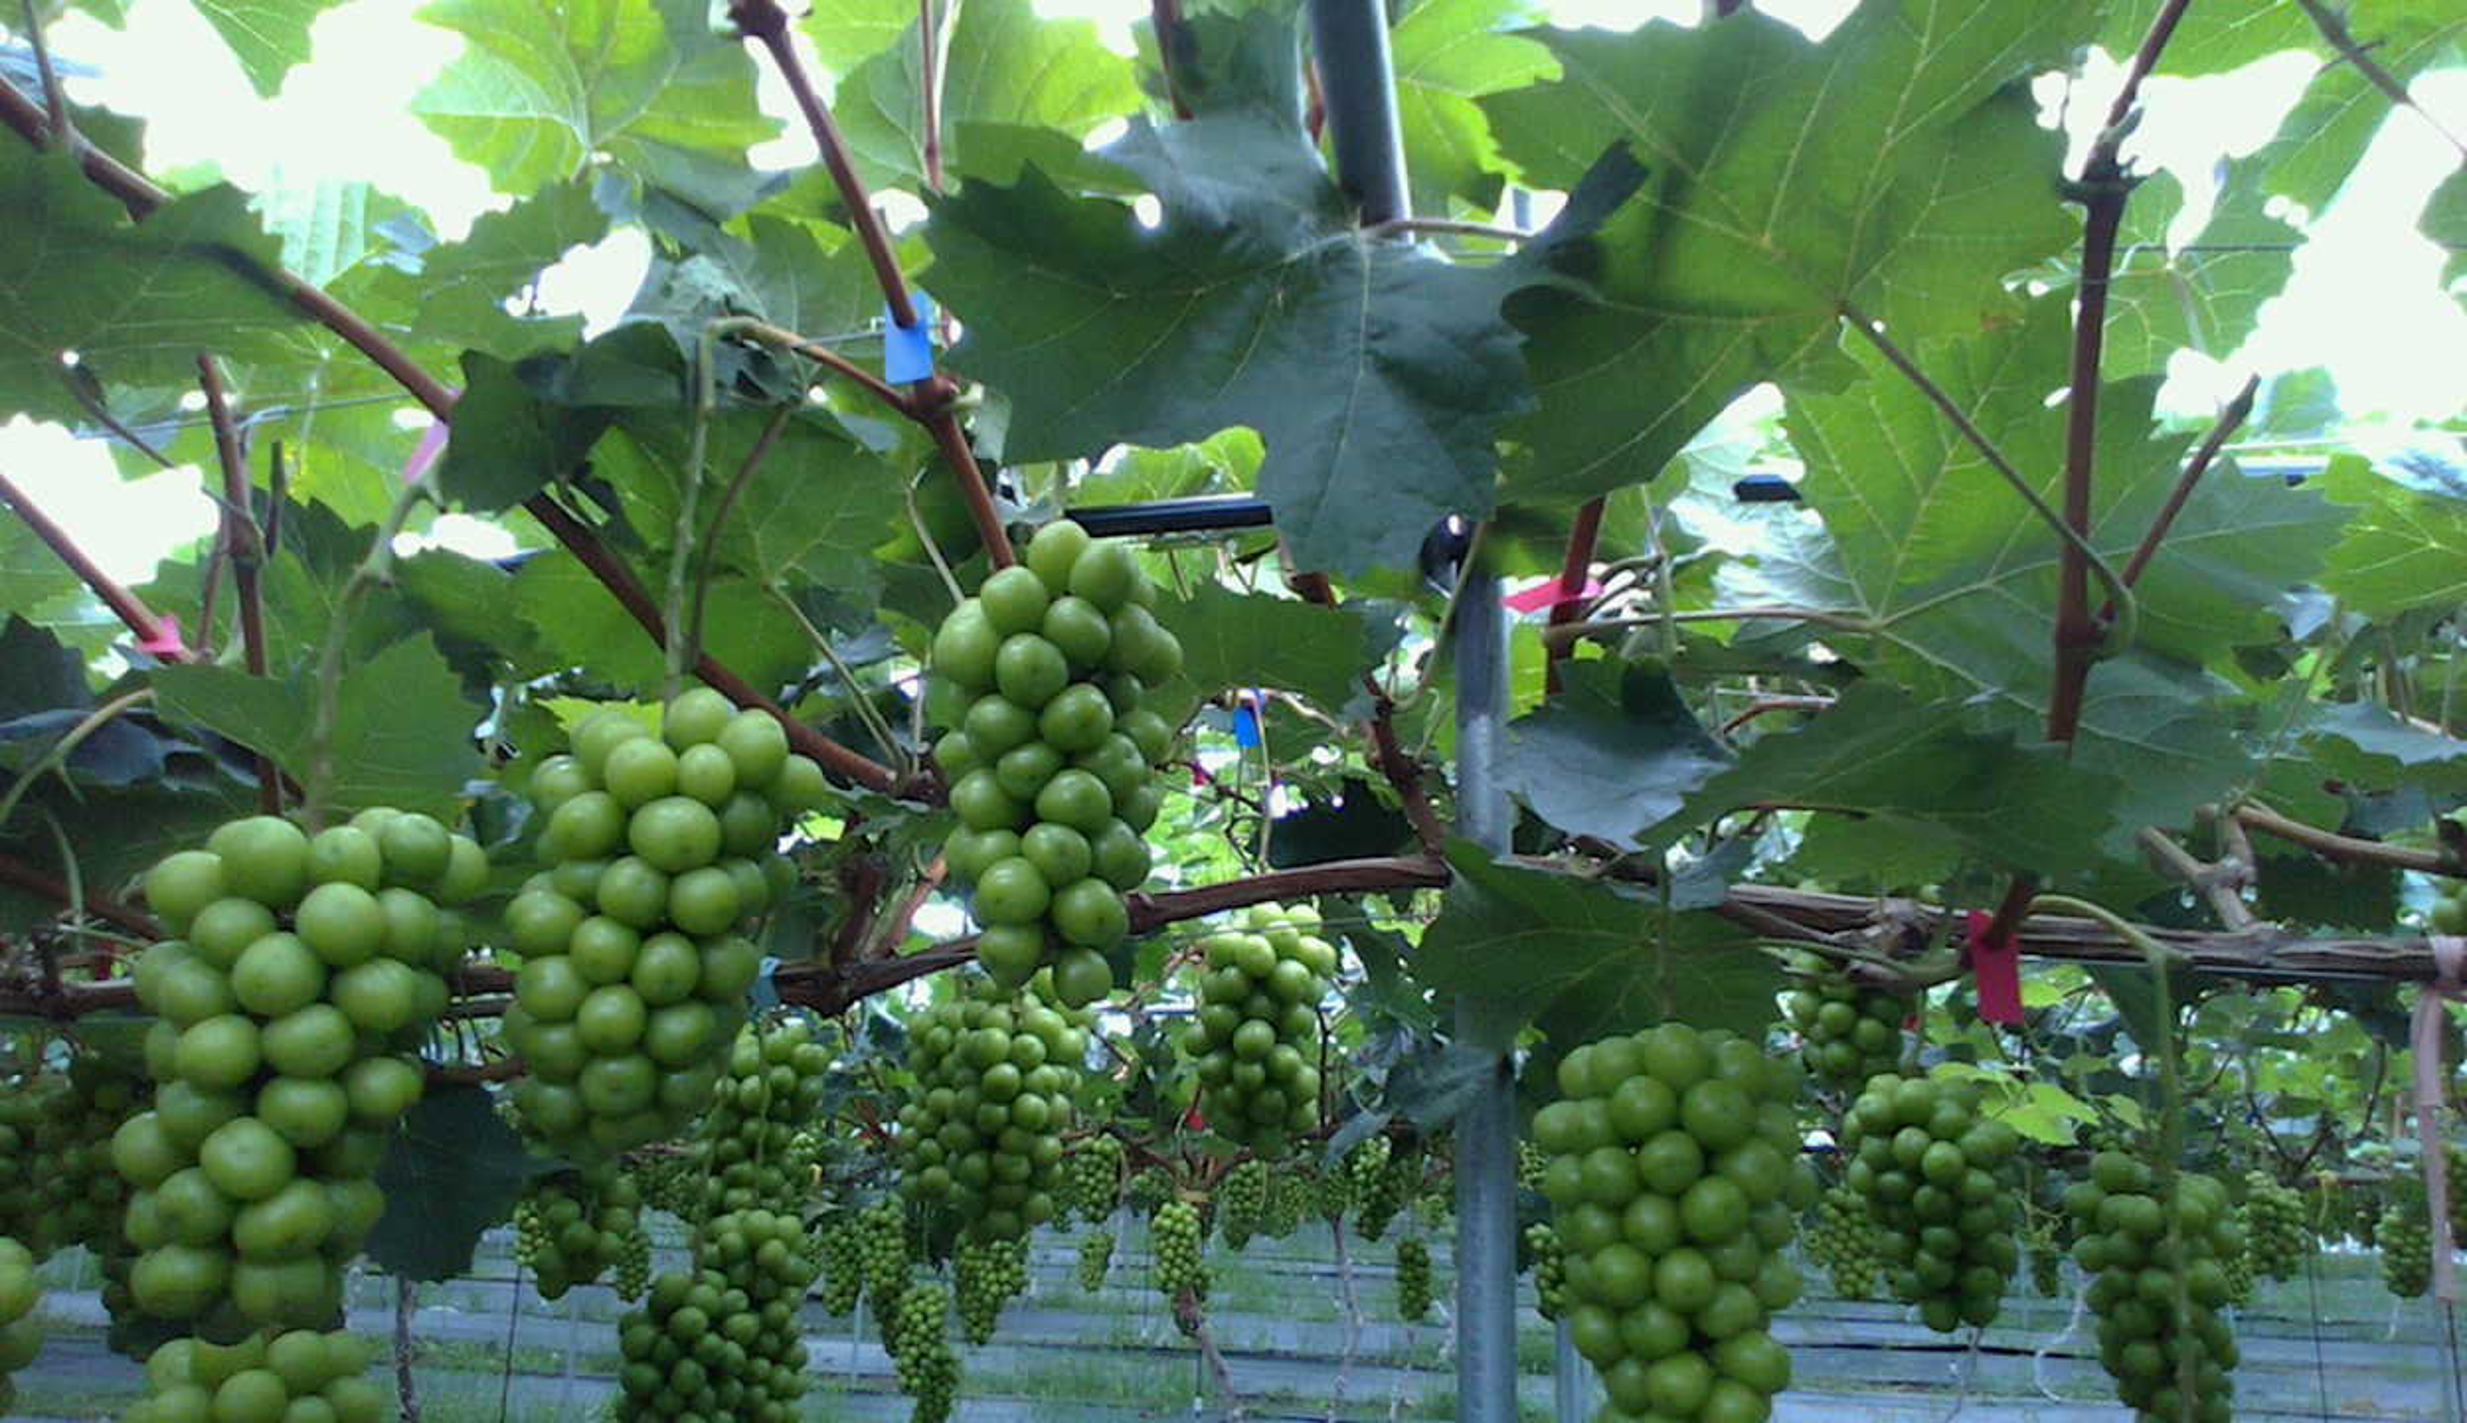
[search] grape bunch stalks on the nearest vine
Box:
[1589,852,1674,1024]
[304,439,451,838]
[1050,460,1067,522]
[658,316,925,731]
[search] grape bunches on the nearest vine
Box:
[931,516,1180,1010]
[119,1324,378,1421]
[1534,1020,1819,1421]
[0,1233,45,1417]
[115,806,488,1346]
[502,688,828,1152]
